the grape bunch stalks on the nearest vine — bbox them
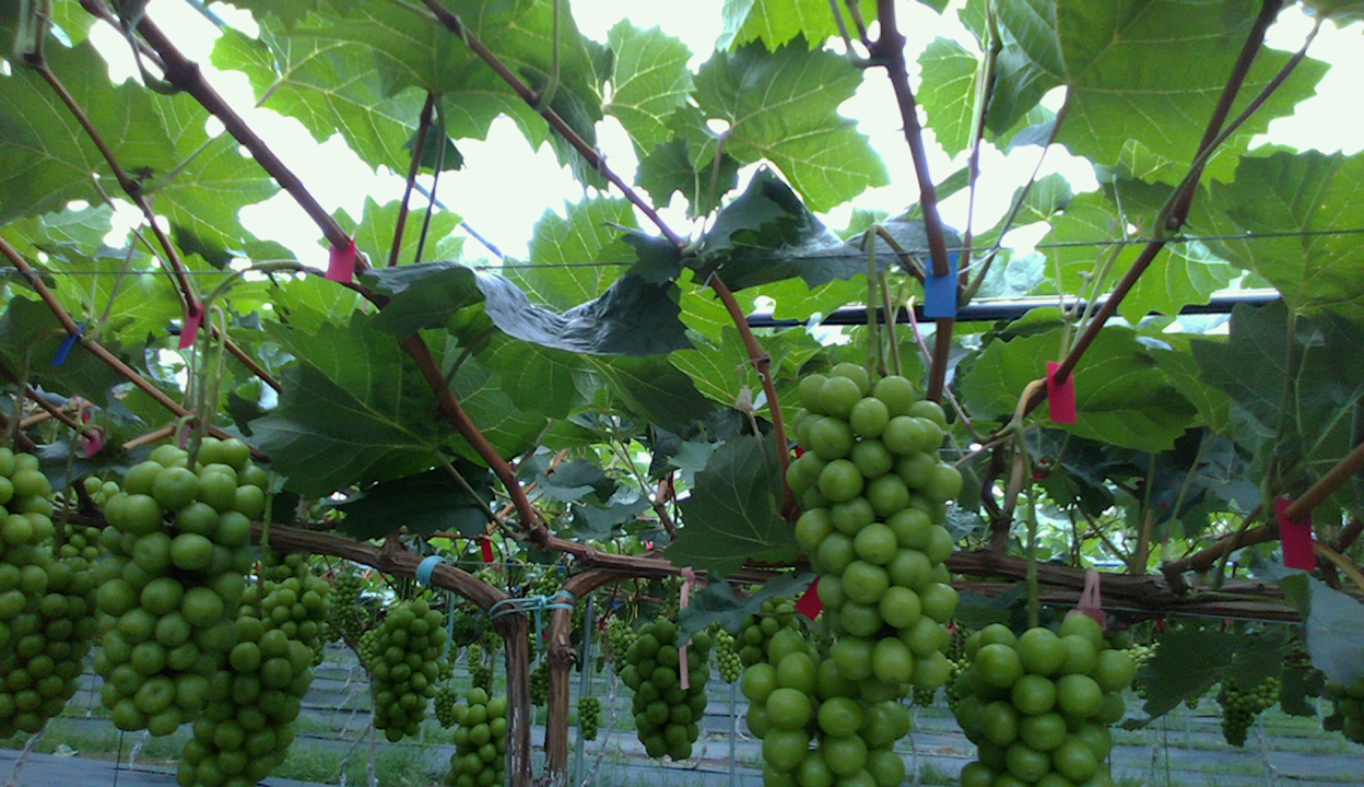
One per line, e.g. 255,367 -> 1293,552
52,424 -> 103,562
0,328 -> 69,449
860,222 -> 926,398
202,304 -> 226,437
255,471 -> 277,622
187,259 -> 326,474
820,606 -> 831,659
1012,378 -> 1046,629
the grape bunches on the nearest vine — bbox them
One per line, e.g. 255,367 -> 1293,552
0,556 -> 99,739
955,614 -> 1134,786
175,615 -> 317,786
785,362 -> 964,703
0,448 -> 51,646
148,436 -> 267,489
740,630 -> 910,786
89,461 -> 264,736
